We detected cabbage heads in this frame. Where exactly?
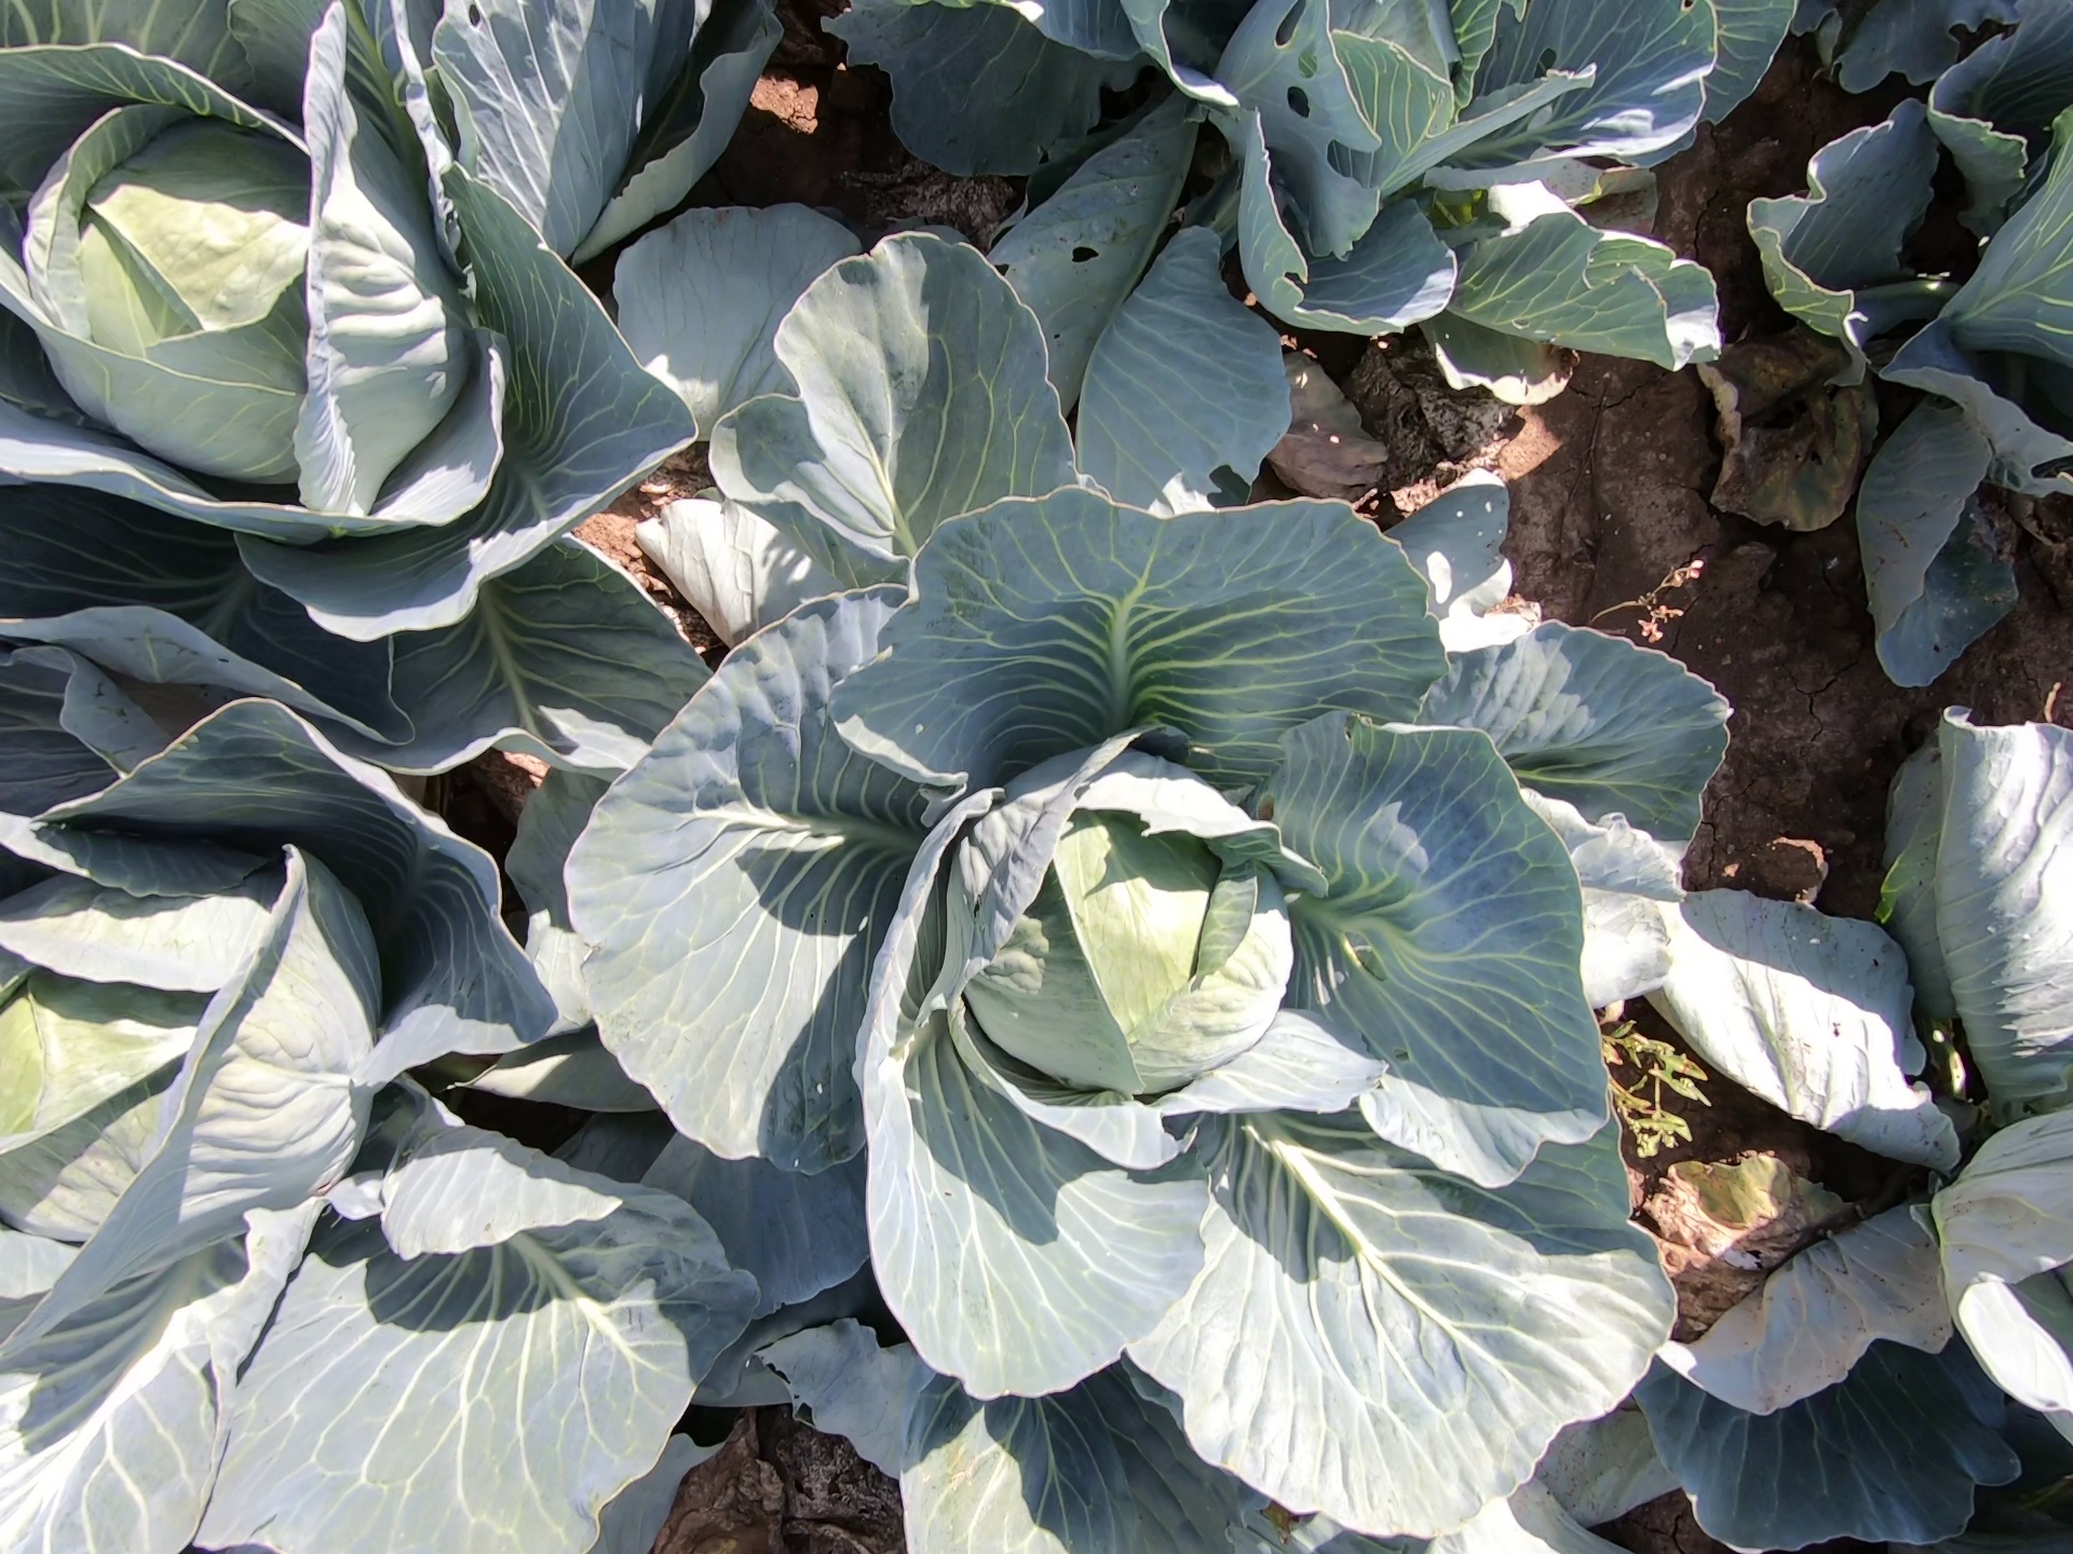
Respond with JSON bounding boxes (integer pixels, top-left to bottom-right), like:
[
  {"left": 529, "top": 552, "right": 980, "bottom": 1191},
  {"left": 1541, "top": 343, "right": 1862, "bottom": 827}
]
[
  {"left": 2, "top": 859, "right": 355, "bottom": 1243},
  {"left": 1317, "top": 2, "right": 1455, "bottom": 136},
  {"left": 963, "top": 776, "right": 1285, "bottom": 1089},
  {"left": 44, "top": 122, "right": 435, "bottom": 479}
]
